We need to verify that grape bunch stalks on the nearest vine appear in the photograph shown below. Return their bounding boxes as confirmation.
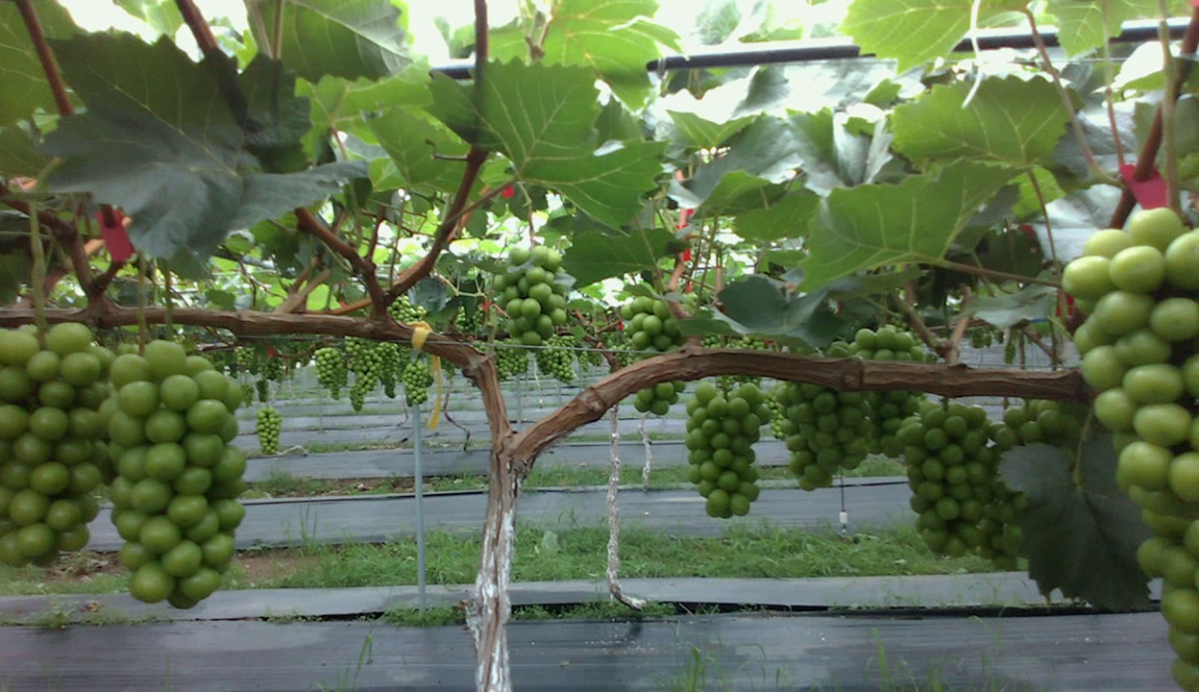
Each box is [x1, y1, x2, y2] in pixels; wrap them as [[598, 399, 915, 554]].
[[1165, 116, 1183, 217], [30, 207, 47, 348], [162, 267, 172, 338]]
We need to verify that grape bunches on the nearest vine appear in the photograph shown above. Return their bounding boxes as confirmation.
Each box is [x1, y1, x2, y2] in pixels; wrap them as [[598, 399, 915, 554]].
[[0, 320, 115, 568], [1061, 206, 1197, 521], [101, 340, 246, 609]]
